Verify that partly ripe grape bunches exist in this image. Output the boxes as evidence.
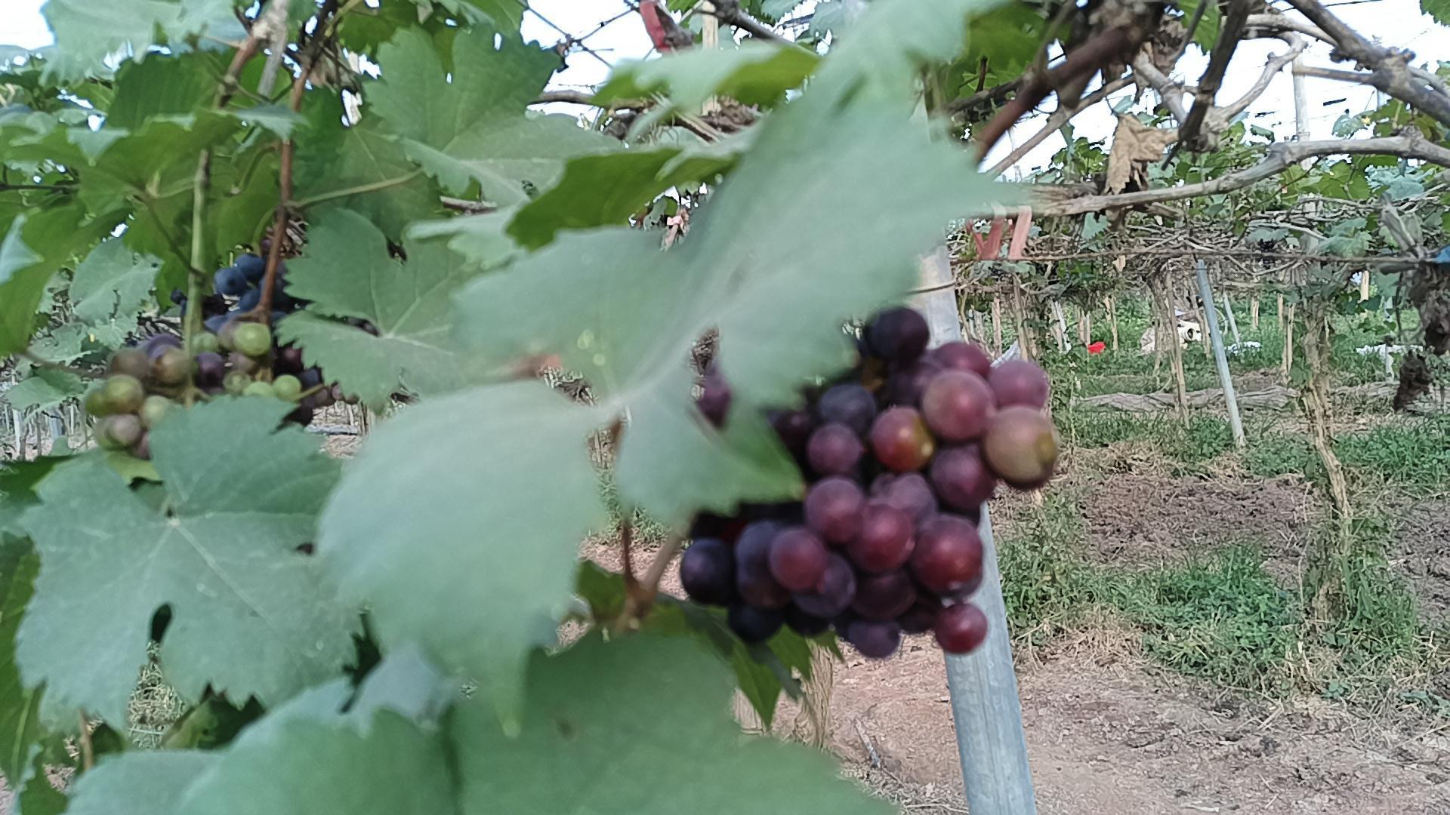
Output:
[82,249,364,461]
[680,307,1057,658]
